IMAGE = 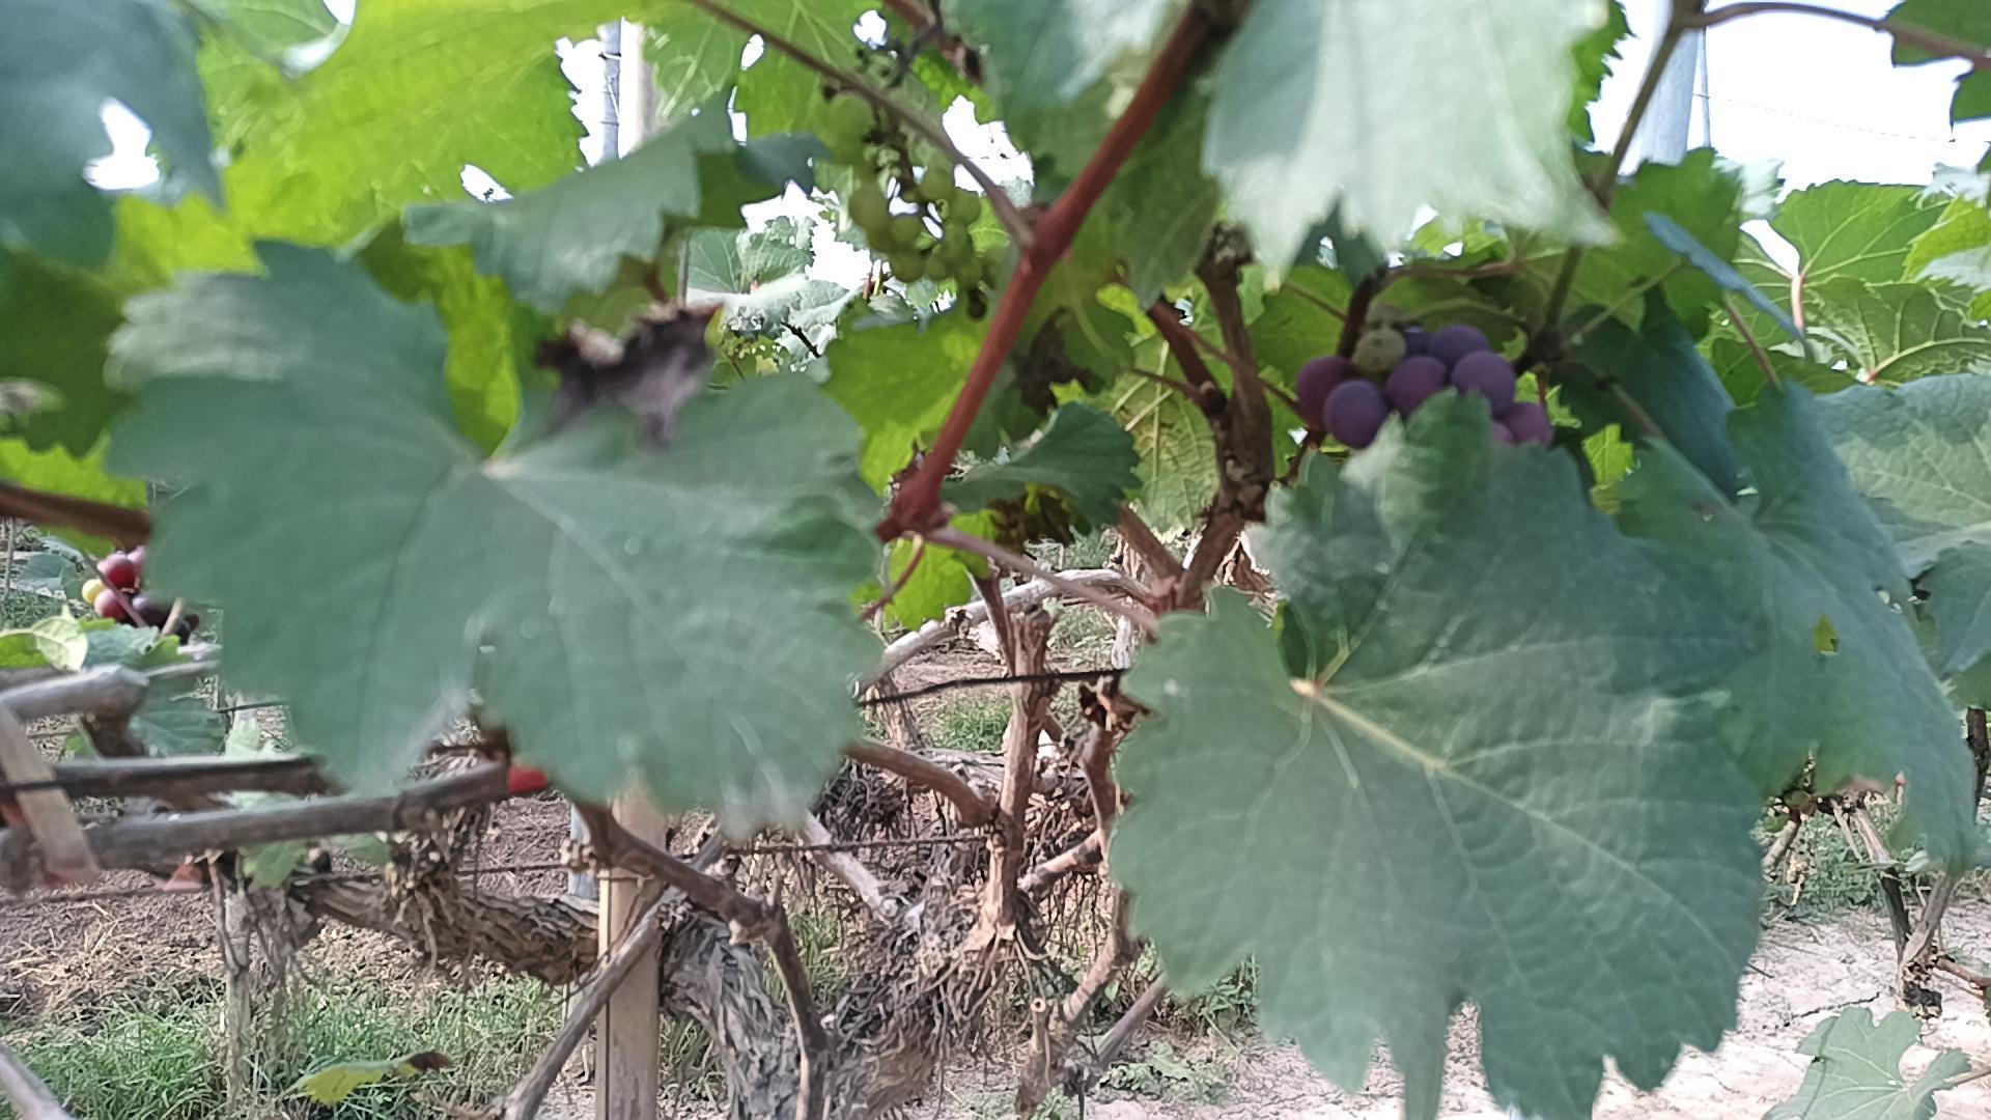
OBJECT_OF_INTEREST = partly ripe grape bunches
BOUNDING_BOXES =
[1299,323,1552,449]
[82,545,198,636]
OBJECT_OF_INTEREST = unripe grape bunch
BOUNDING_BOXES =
[816,91,985,288]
